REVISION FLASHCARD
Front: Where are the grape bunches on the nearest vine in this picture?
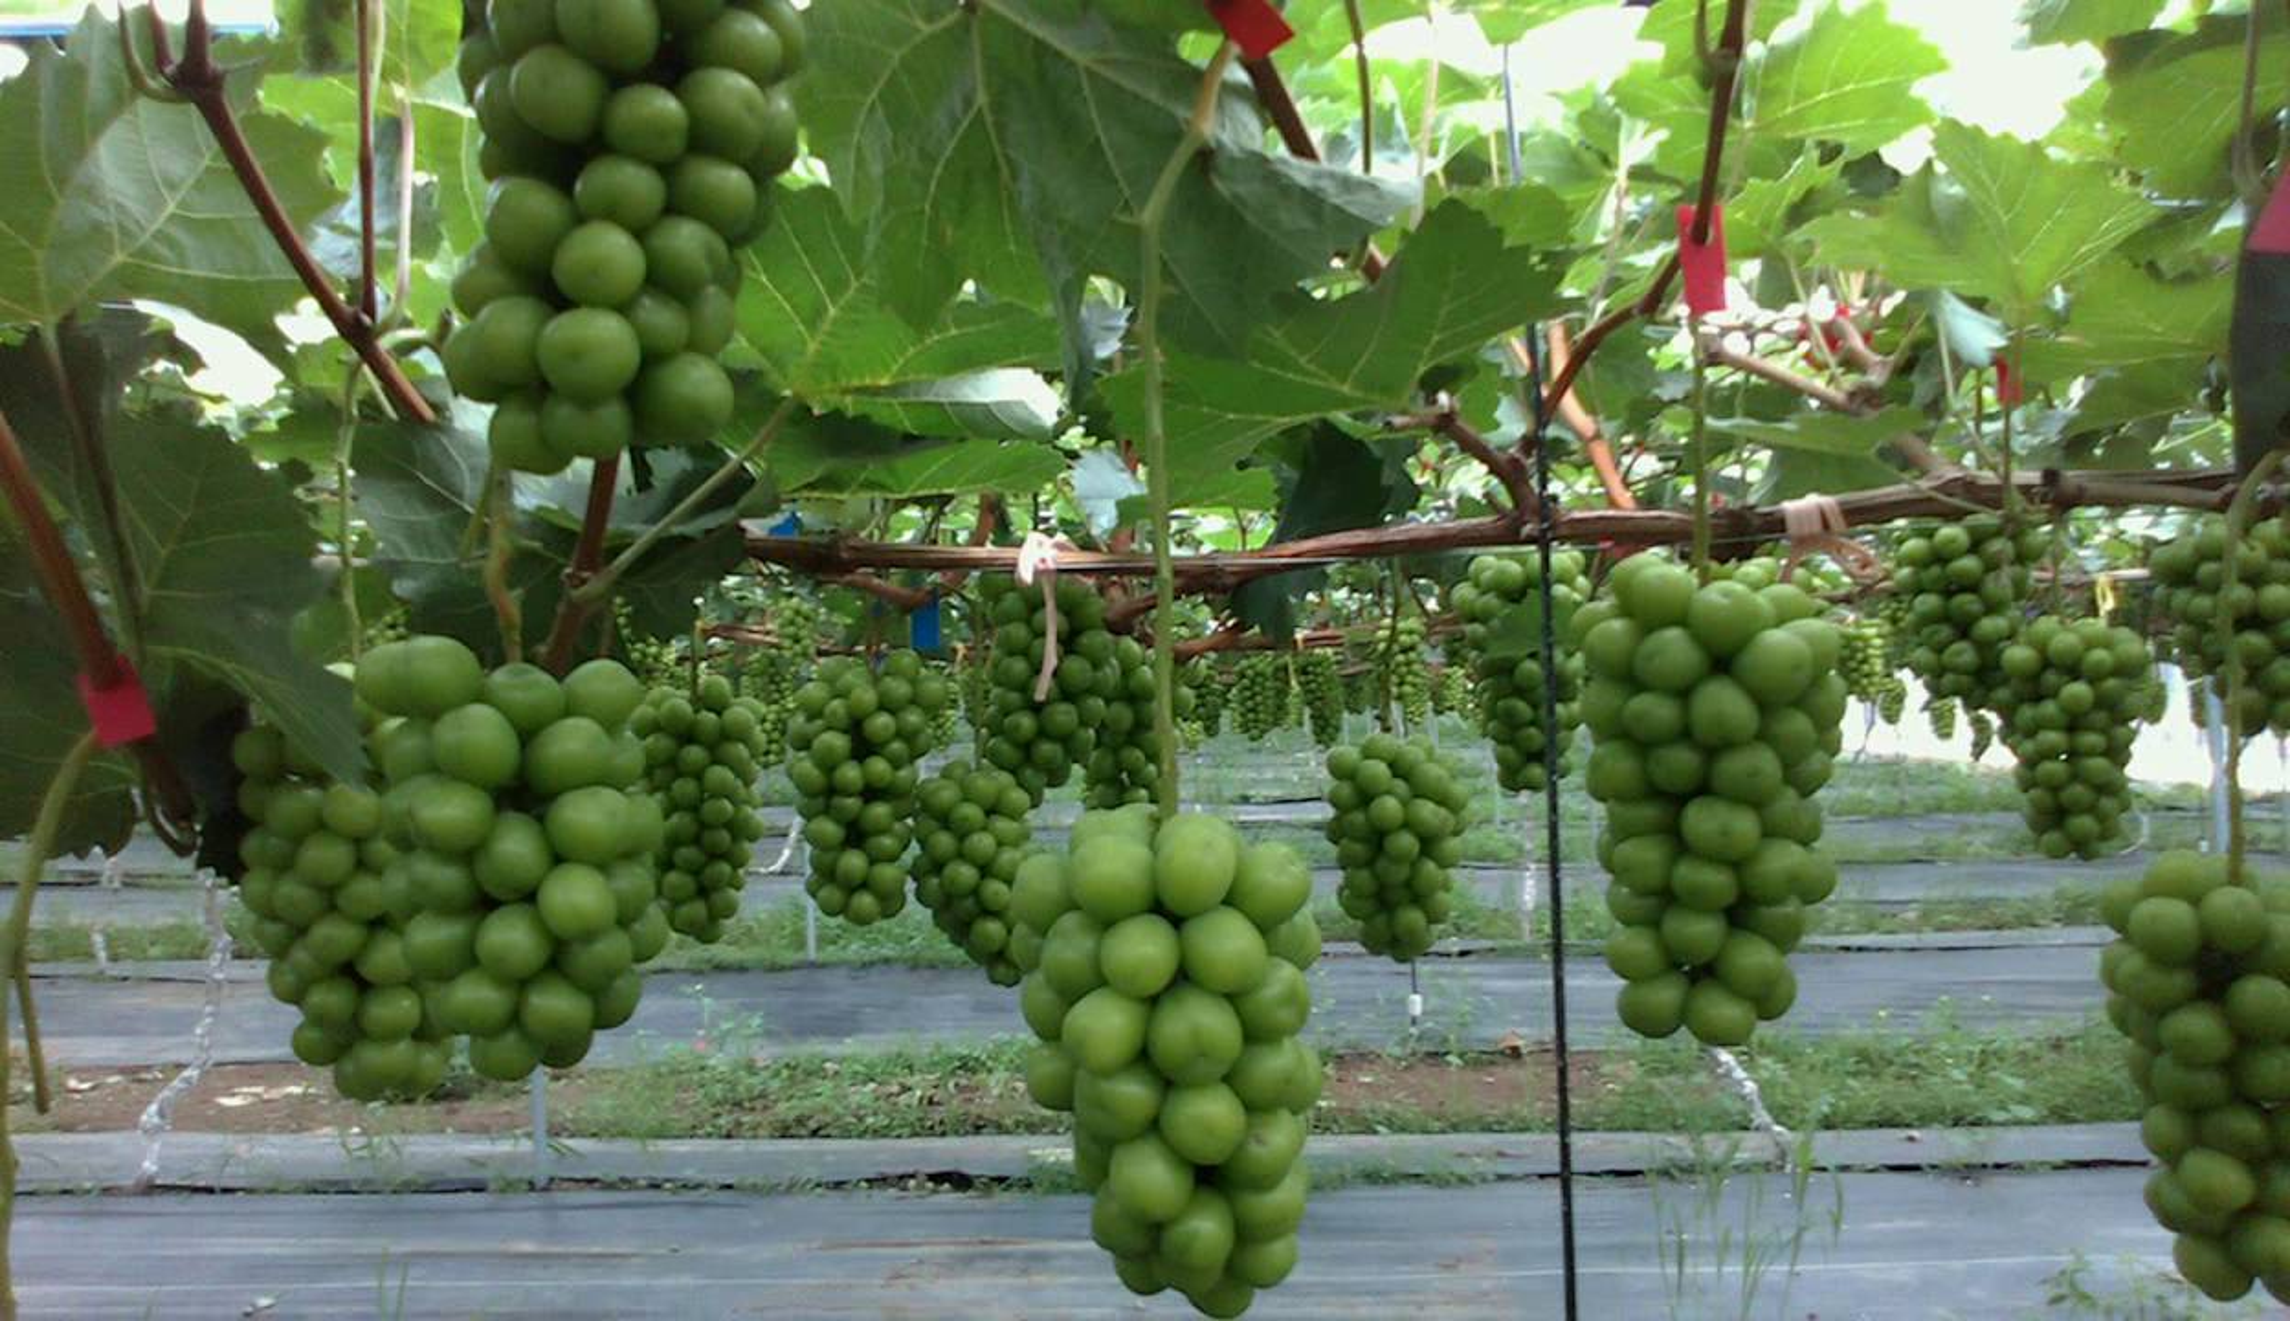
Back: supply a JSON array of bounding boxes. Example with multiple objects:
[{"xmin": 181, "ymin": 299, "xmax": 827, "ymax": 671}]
[
  {"xmin": 439, "ymin": 2, "xmax": 809, "ymax": 477},
  {"xmin": 354, "ymin": 635, "xmax": 672, "ymax": 1082},
  {"xmin": 1567, "ymin": 552, "xmax": 1850, "ymax": 1046},
  {"xmin": 2097, "ymin": 849, "xmax": 2288, "ymax": 1306},
  {"xmin": 233, "ymin": 686, "xmax": 455, "ymax": 1101},
  {"xmin": 1007, "ymin": 802, "xmax": 1325, "ymax": 1319}
]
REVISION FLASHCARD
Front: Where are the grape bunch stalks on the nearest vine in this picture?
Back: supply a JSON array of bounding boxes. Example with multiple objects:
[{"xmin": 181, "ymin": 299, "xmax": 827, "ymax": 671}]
[
  {"xmin": 1138, "ymin": 40, "xmax": 1237, "ymax": 831},
  {"xmin": 336, "ymin": 352, "xmax": 363, "ymax": 662},
  {"xmin": 481, "ymin": 464, "xmax": 525, "ymax": 664},
  {"xmin": 2215, "ymin": 448, "xmax": 2288, "ymax": 884},
  {"xmin": 0, "ymin": 727, "xmax": 97, "ymax": 1315},
  {"xmin": 1688, "ymin": 314, "xmax": 1710, "ymax": 591}
]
